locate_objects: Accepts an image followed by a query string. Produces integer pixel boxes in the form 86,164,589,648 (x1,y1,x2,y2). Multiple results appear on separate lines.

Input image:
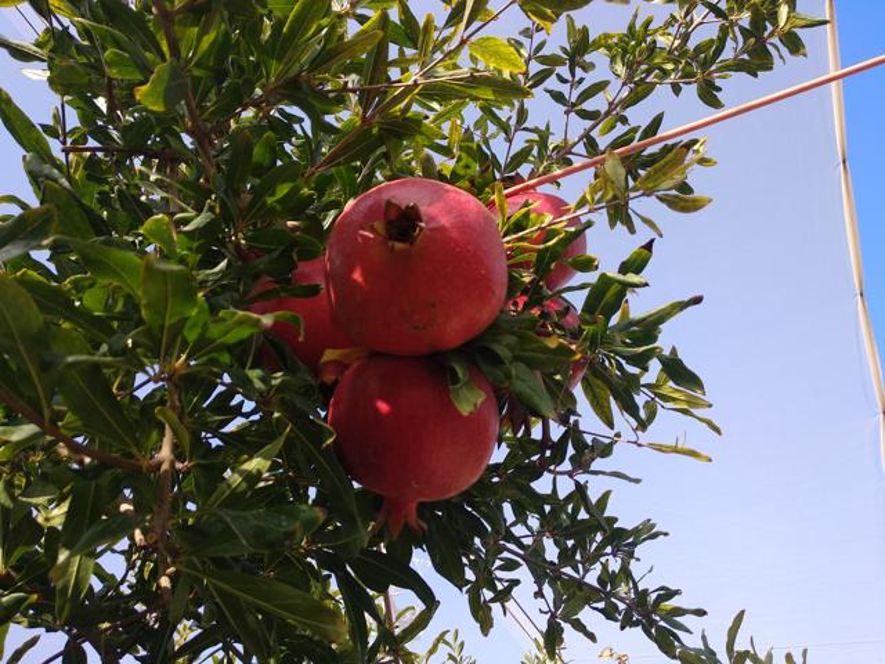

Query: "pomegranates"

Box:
322,177,507,353
325,351,501,541
485,192,586,289
246,249,376,380
499,292,590,393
